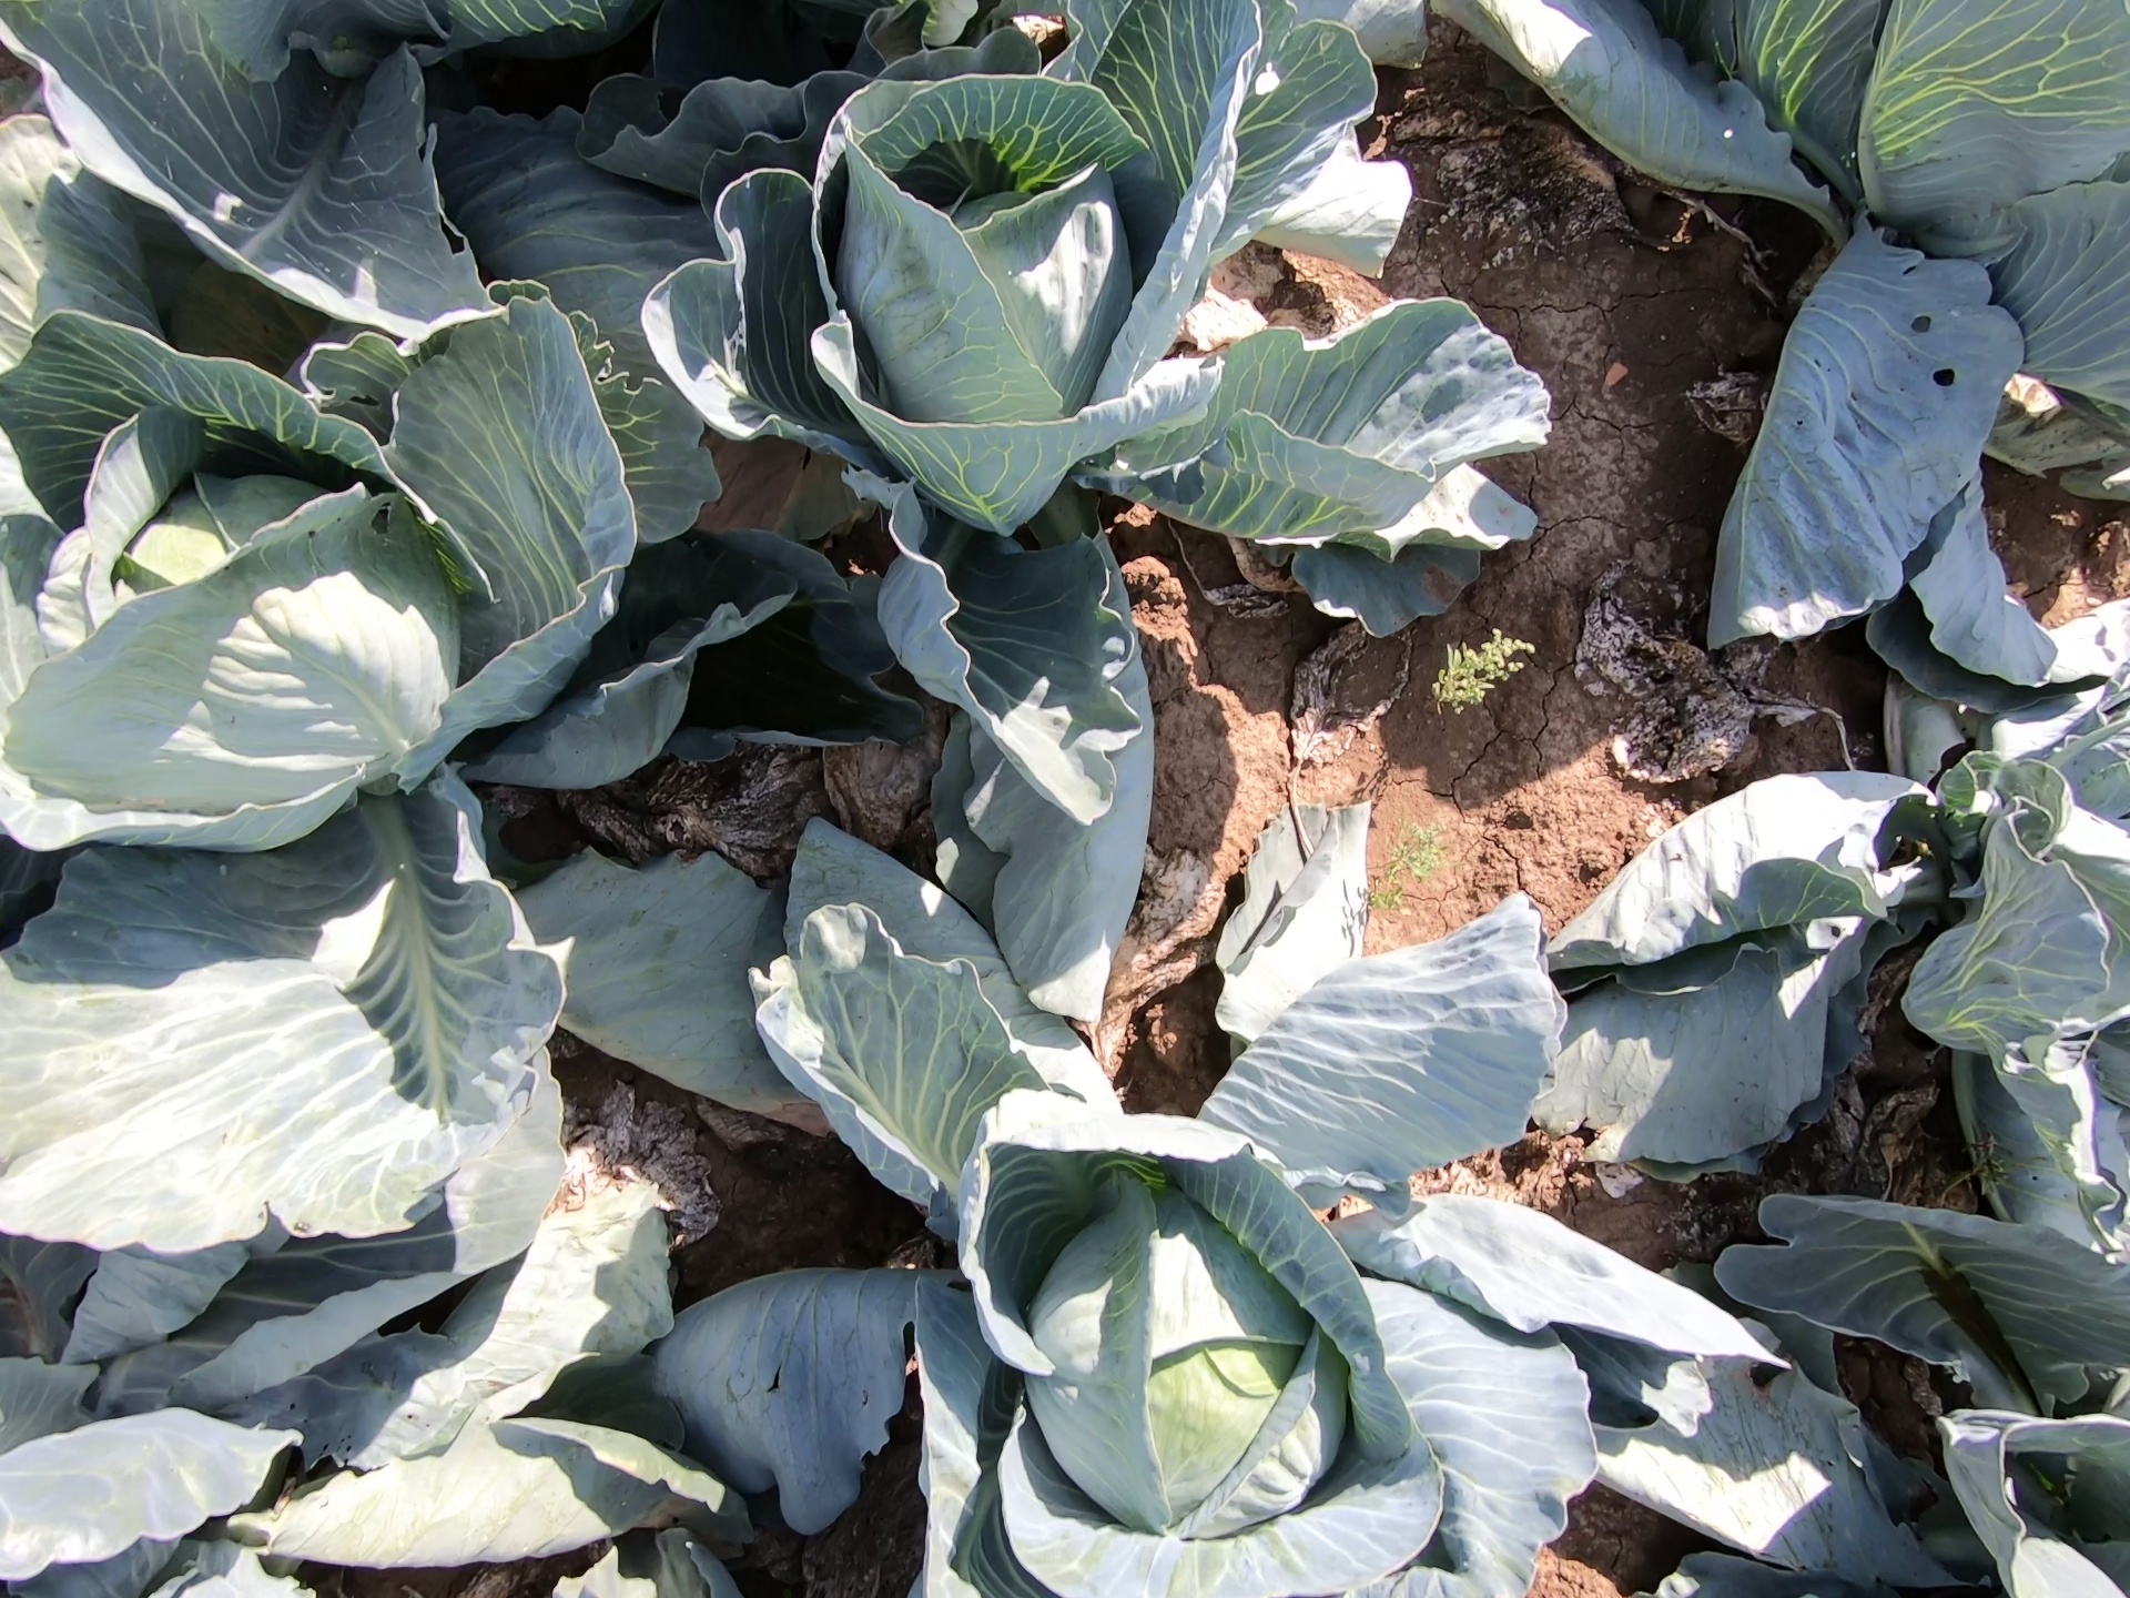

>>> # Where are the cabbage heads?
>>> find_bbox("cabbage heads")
[1029,1197,1359,1539]
[83,481,430,769]
[885,190,1117,438]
